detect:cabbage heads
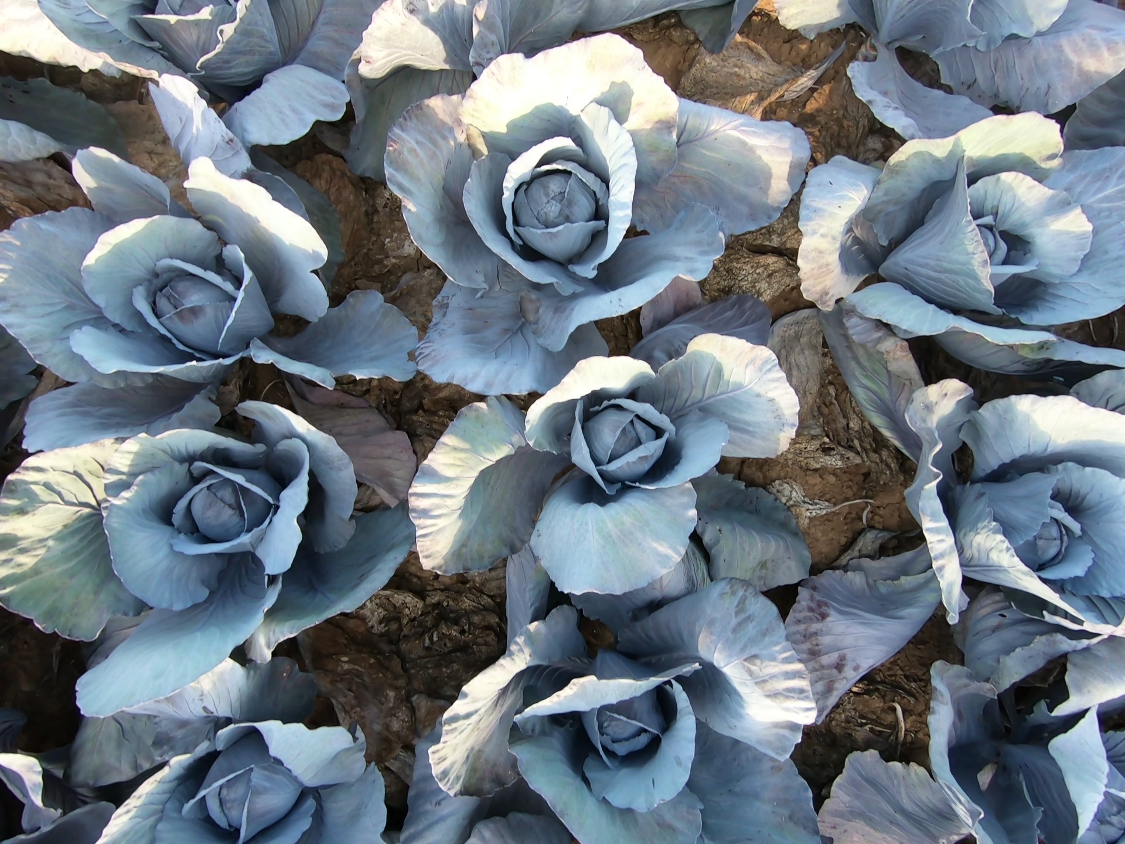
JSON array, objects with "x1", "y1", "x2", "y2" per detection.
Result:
[
  {"x1": 520, "y1": 172, "x2": 593, "y2": 241},
  {"x1": 587, "y1": 670, "x2": 659, "y2": 754},
  {"x1": 155, "y1": 275, "x2": 241, "y2": 347},
  {"x1": 206, "y1": 741, "x2": 303, "y2": 830},
  {"x1": 1008, "y1": 512, "x2": 1065, "y2": 569},
  {"x1": 948, "y1": 223, "x2": 1005, "y2": 278},
  {"x1": 155, "y1": 0, "x2": 234, "y2": 59},
  {"x1": 589, "y1": 409, "x2": 655, "y2": 478},
  {"x1": 1037, "y1": 749, "x2": 1124, "y2": 843},
  {"x1": 189, "y1": 470, "x2": 272, "y2": 539}
]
